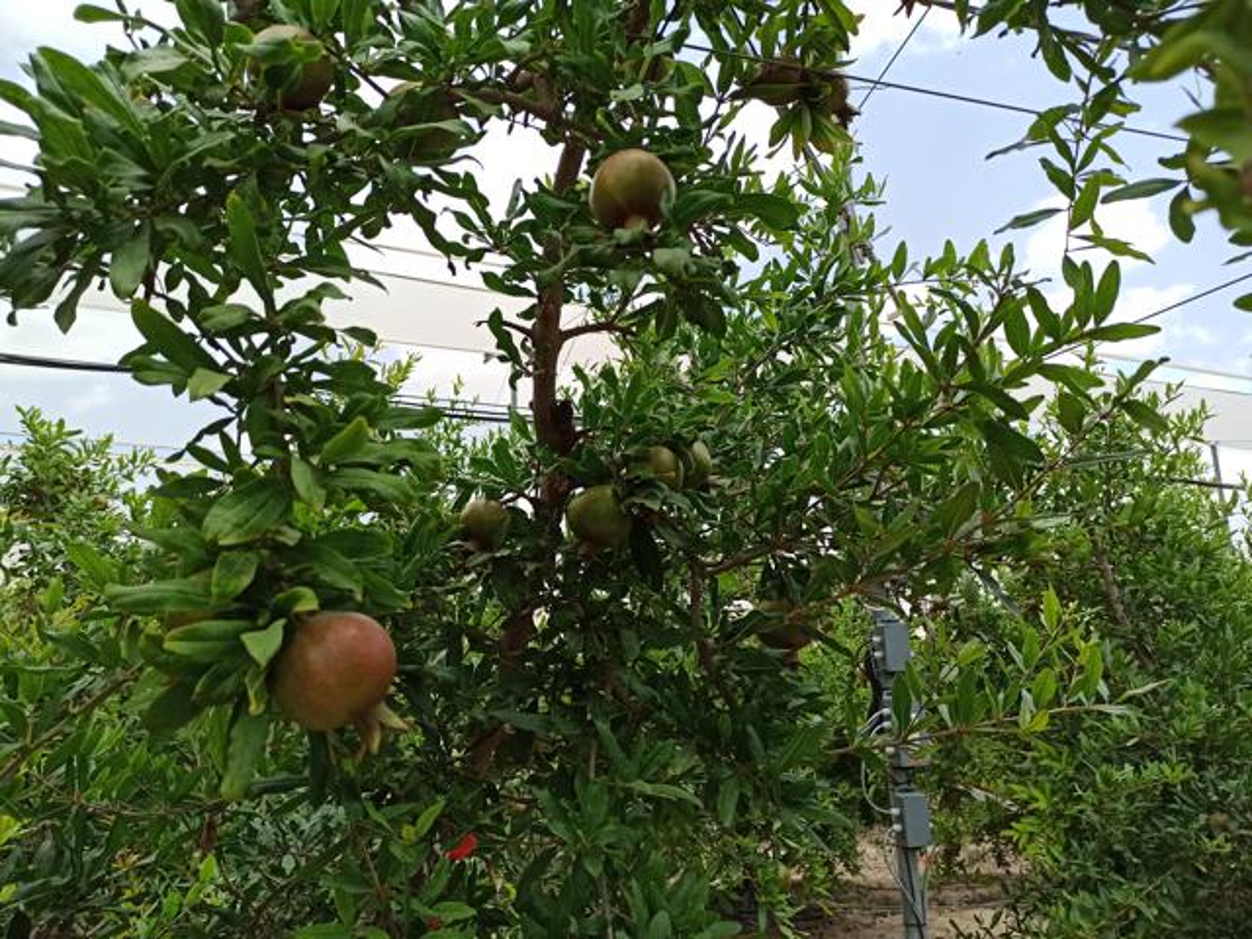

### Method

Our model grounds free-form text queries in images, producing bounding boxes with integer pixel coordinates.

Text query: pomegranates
[651,440,712,493]
[589,149,677,231]
[454,501,511,559]
[728,68,802,108]
[565,485,622,550]
[274,612,421,765]
[252,25,333,110]
[802,72,861,129]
